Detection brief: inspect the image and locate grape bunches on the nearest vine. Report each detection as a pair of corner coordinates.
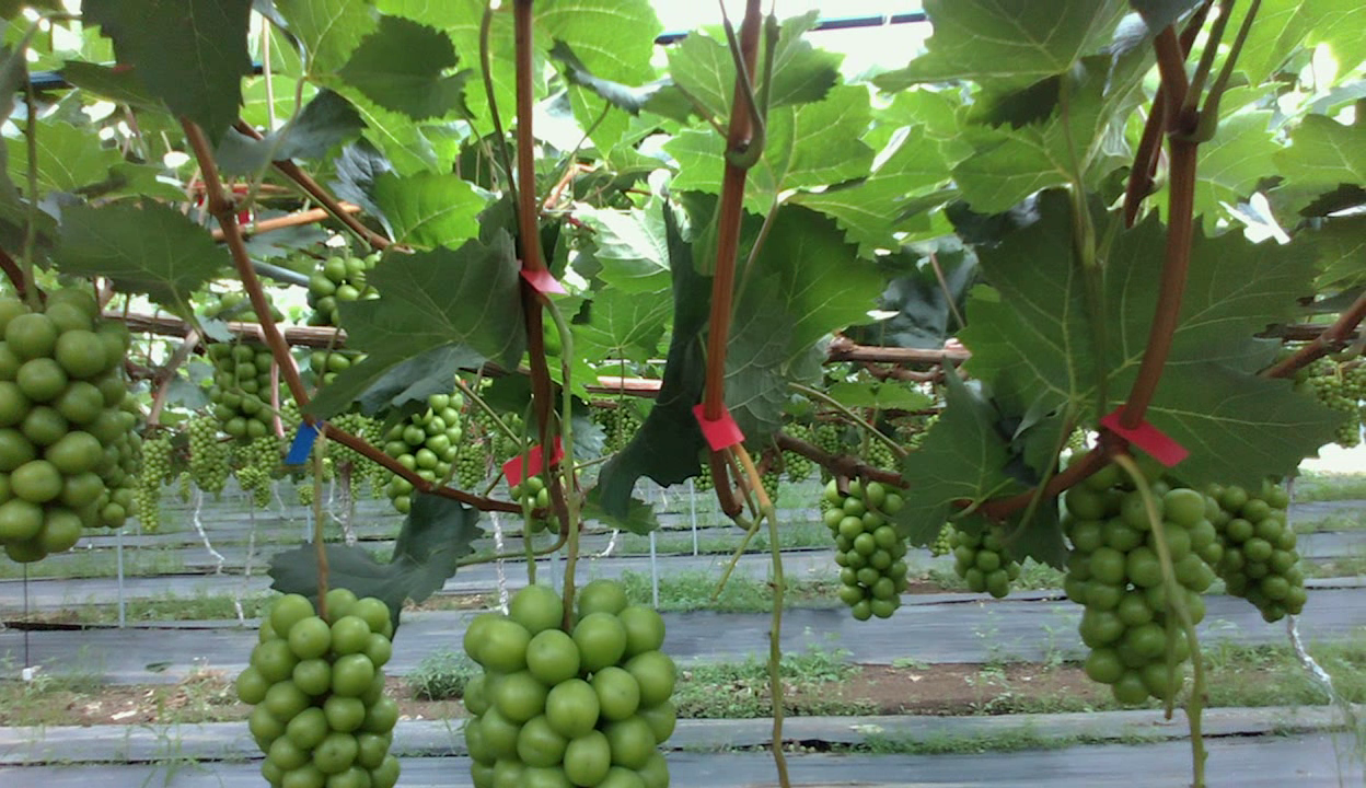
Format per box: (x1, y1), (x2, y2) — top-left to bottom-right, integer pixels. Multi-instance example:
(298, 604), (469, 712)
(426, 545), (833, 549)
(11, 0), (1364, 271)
(235, 587), (401, 787)
(0, 288), (131, 564)
(464, 581), (678, 787)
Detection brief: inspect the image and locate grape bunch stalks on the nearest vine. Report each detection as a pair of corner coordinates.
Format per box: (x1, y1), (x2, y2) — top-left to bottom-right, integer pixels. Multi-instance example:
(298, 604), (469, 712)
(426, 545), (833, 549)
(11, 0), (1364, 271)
(536, 294), (581, 637)
(18, 11), (84, 313)
(1113, 453), (1209, 786)
(312, 436), (329, 624)
(733, 443), (789, 783)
